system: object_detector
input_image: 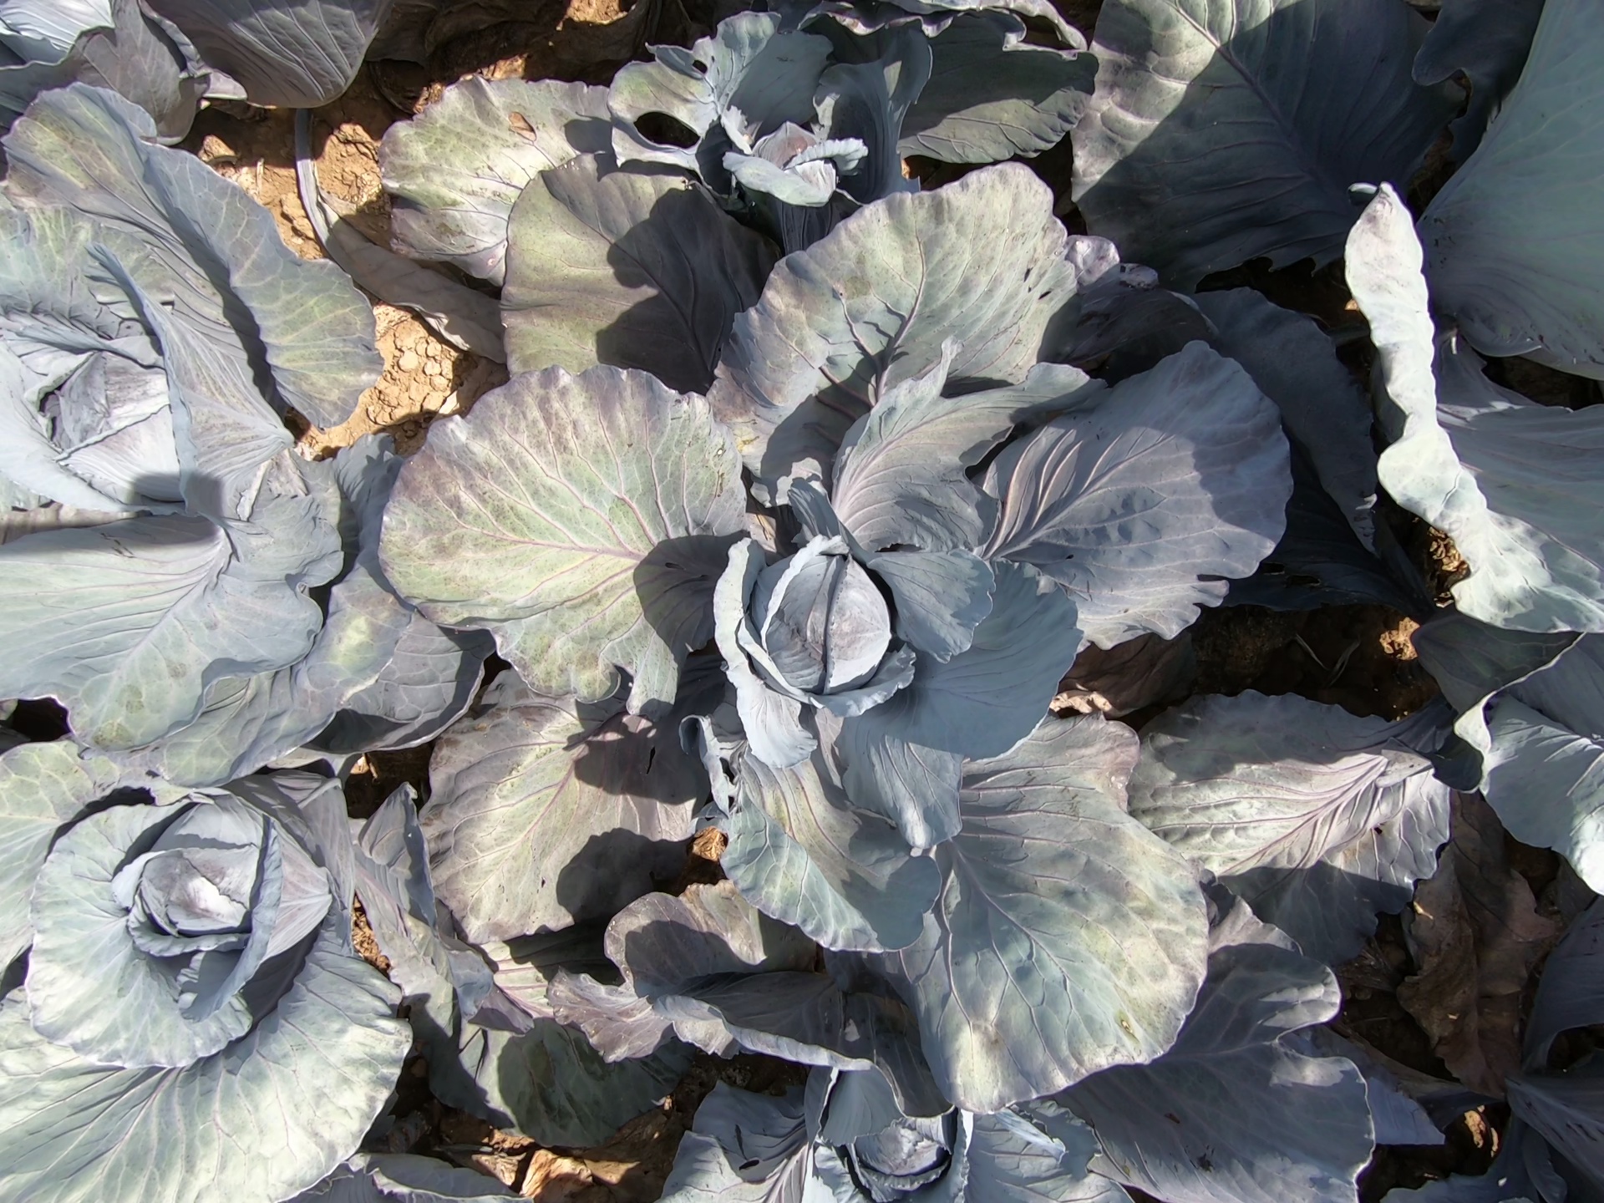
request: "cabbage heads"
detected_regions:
[754,549,891,699]
[749,125,840,206]
[59,333,226,503]
[842,1056,963,1191]
[2,2,189,116]
[140,794,306,950]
